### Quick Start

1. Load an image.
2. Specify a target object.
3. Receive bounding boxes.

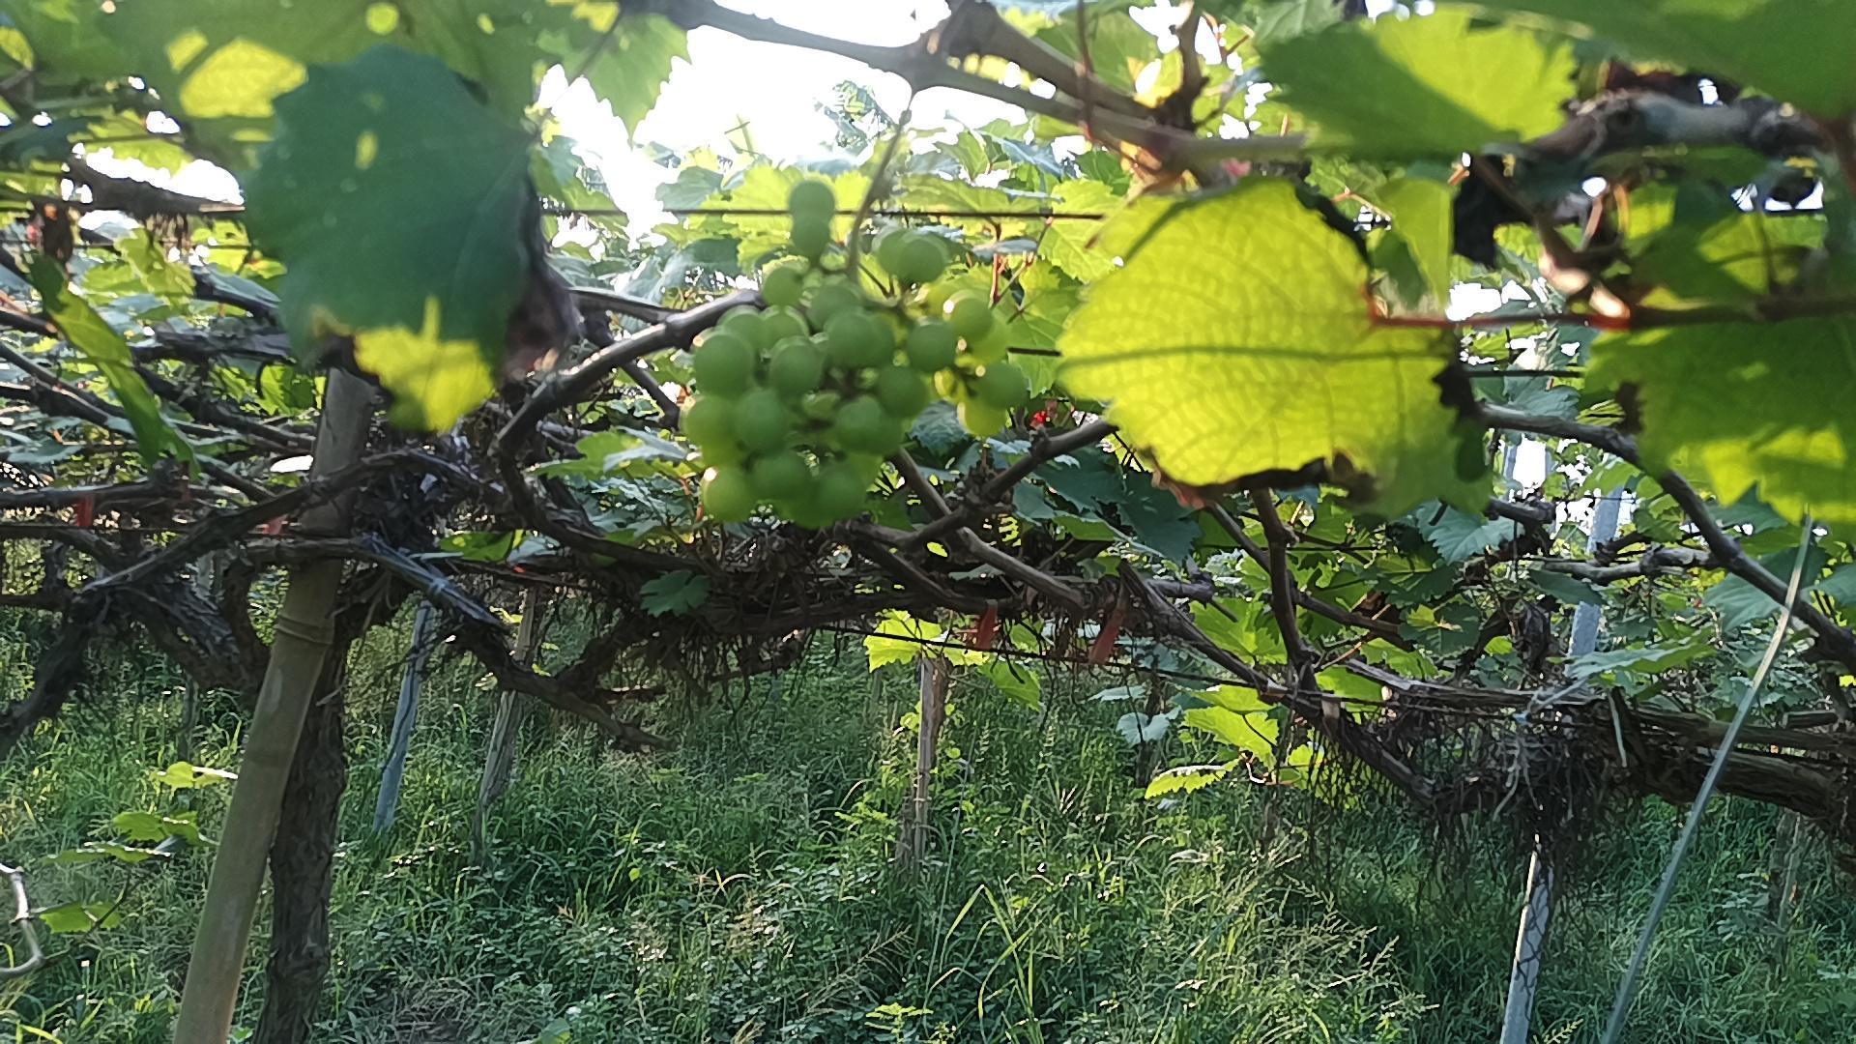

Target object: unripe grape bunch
[680,178,1029,528]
